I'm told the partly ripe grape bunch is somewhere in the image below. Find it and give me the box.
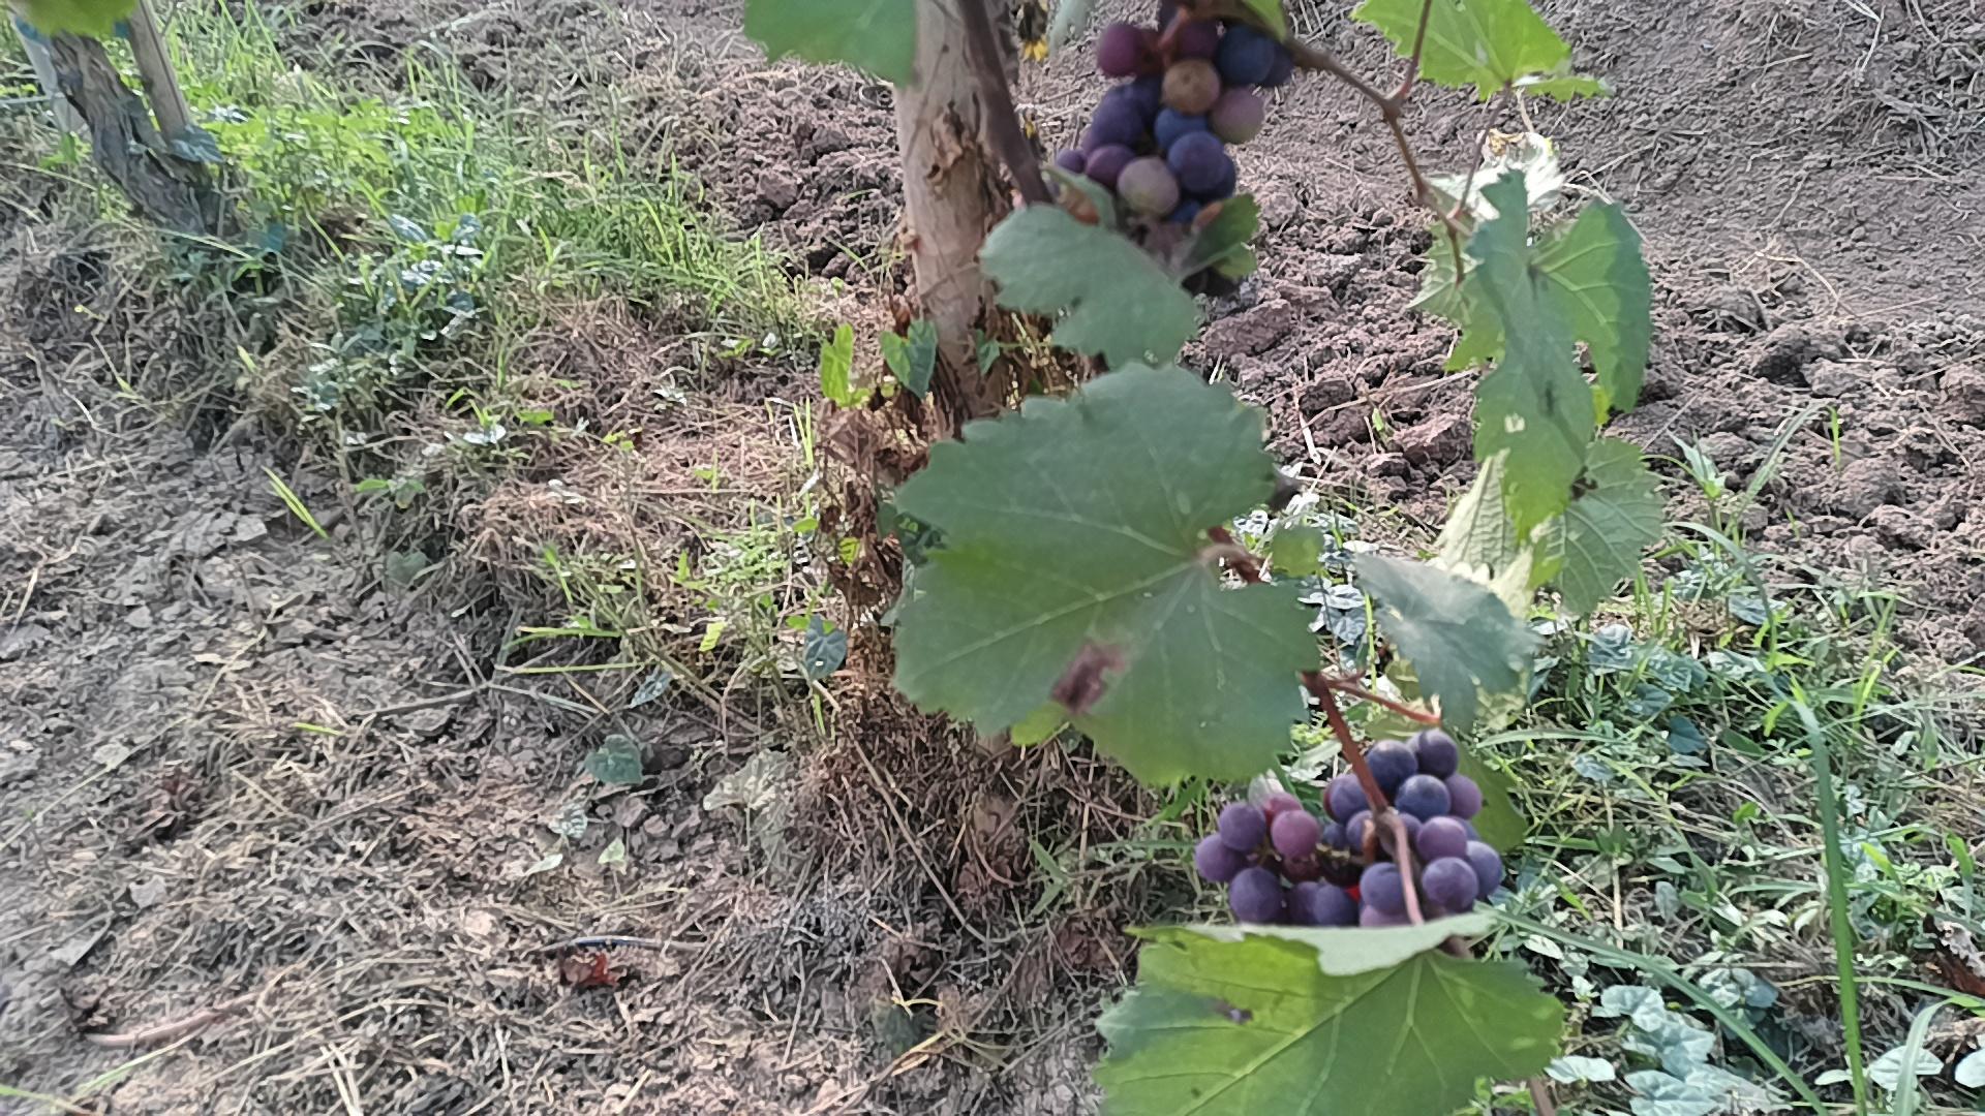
[1052,0,1293,226]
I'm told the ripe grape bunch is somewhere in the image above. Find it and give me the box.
[1197,730,1508,927]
